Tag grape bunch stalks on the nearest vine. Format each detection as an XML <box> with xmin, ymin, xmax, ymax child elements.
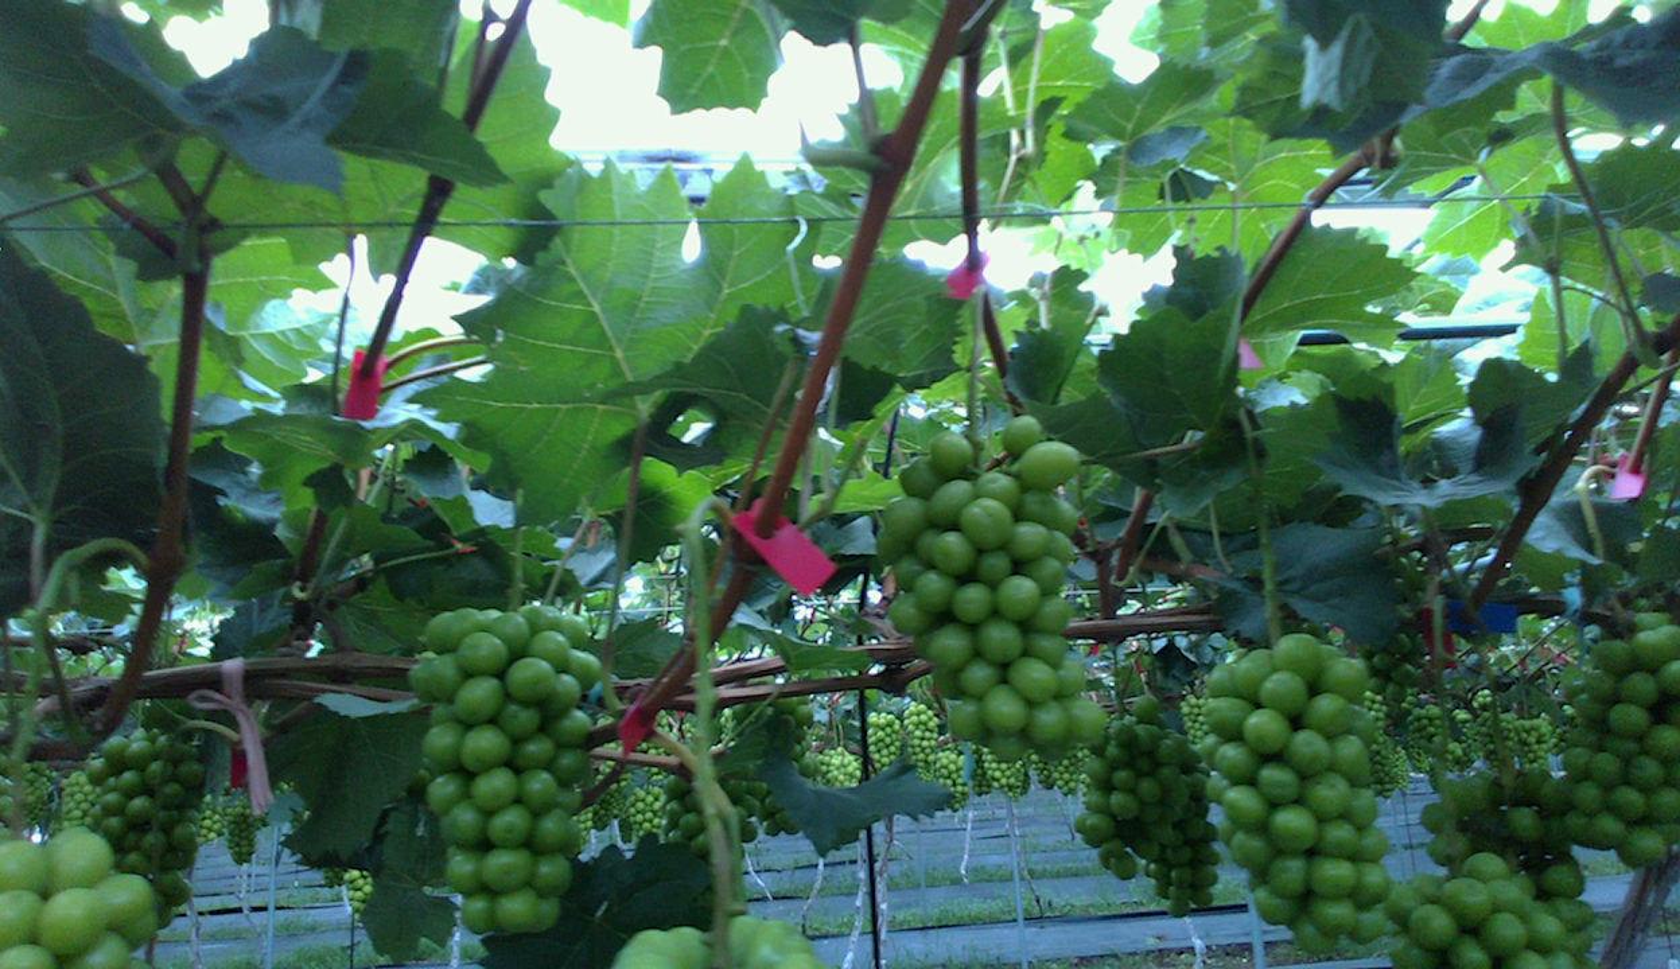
<box><xmin>1478</xmin><ymin>637</ymin><xmax>1517</xmax><ymax>806</ymax></box>
<box><xmin>510</xmin><ymin>530</ymin><xmax>526</xmax><ymax>606</ymax></box>
<box><xmin>678</xmin><ymin>497</ymin><xmax>747</xmax><ymax>965</ymax></box>
<box><xmin>1576</xmin><ymin>463</ymin><xmax>1632</xmax><ymax>634</ymax></box>
<box><xmin>9</xmin><ymin>538</ymin><xmax>144</xmax><ymax>833</ymax></box>
<box><xmin>1431</xmin><ymin>600</ymin><xmax>1462</xmax><ymax>876</ymax></box>
<box><xmin>1237</xmin><ymin>412</ymin><xmax>1280</xmax><ymax>637</ymax></box>
<box><xmin>967</xmin><ymin>285</ymin><xmax>985</xmax><ymax>466</ymax></box>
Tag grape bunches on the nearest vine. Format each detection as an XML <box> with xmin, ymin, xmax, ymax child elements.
<box><xmin>1389</xmin><ymin>852</ymin><xmax>1579</xmax><ymax>966</ymax></box>
<box><xmin>612</xmin><ymin>917</ymin><xmax>825</xmax><ymax>968</ymax></box>
<box><xmin>411</xmin><ymin>603</ymin><xmax>602</xmax><ymax>935</ymax></box>
<box><xmin>1455</xmin><ymin>766</ymin><xmax>1598</xmax><ymax>968</ymax></box>
<box><xmin>872</xmin><ymin>416</ymin><xmax>1107</xmax><ymax>763</ymax></box>
<box><xmin>0</xmin><ymin>822</ymin><xmax>160</xmax><ymax>968</ymax></box>
<box><xmin>1556</xmin><ymin>612</ymin><xmax>1679</xmax><ymax>869</ymax></box>
<box><xmin>1201</xmin><ymin>633</ymin><xmax>1389</xmax><ymax>961</ymax></box>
